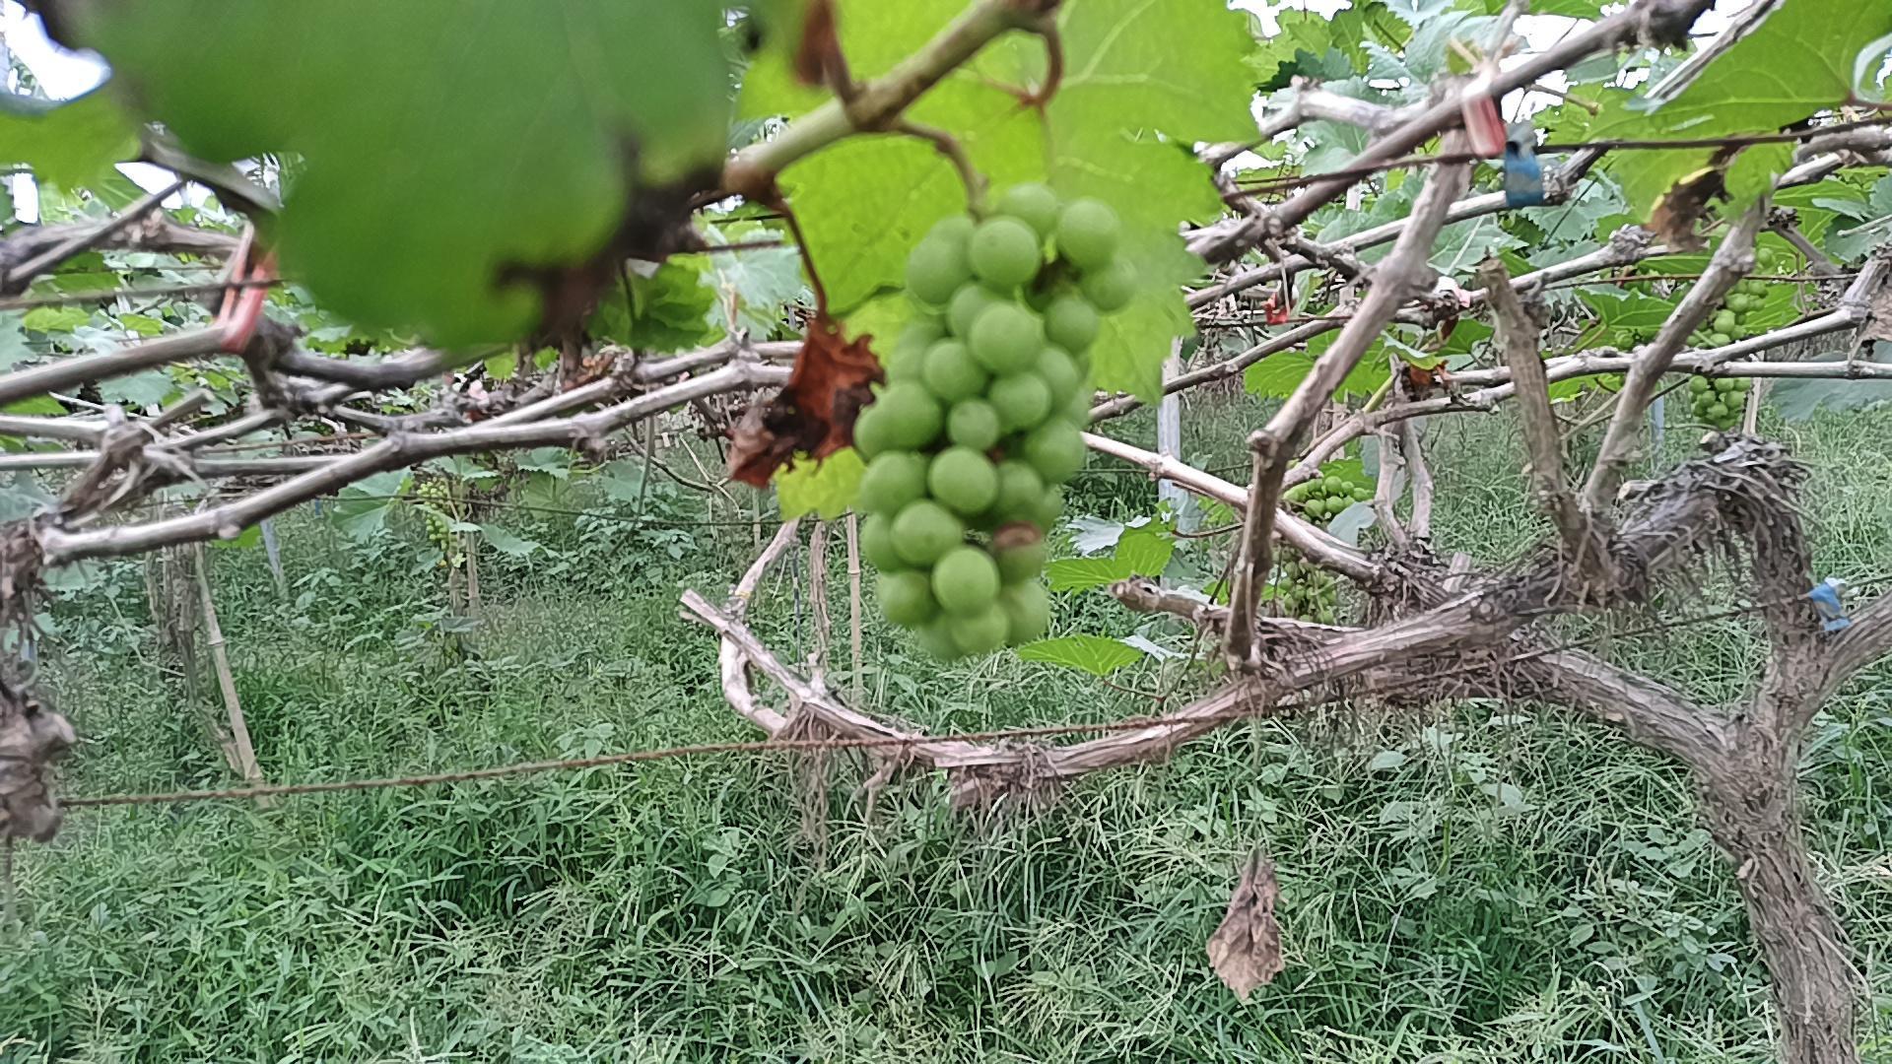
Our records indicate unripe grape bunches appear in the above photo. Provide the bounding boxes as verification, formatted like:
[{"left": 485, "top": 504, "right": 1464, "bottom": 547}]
[
  {"left": 1272, "top": 475, "right": 1370, "bottom": 626},
  {"left": 1684, "top": 245, "right": 1776, "bottom": 431},
  {"left": 856, "top": 184, "right": 1136, "bottom": 661}
]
